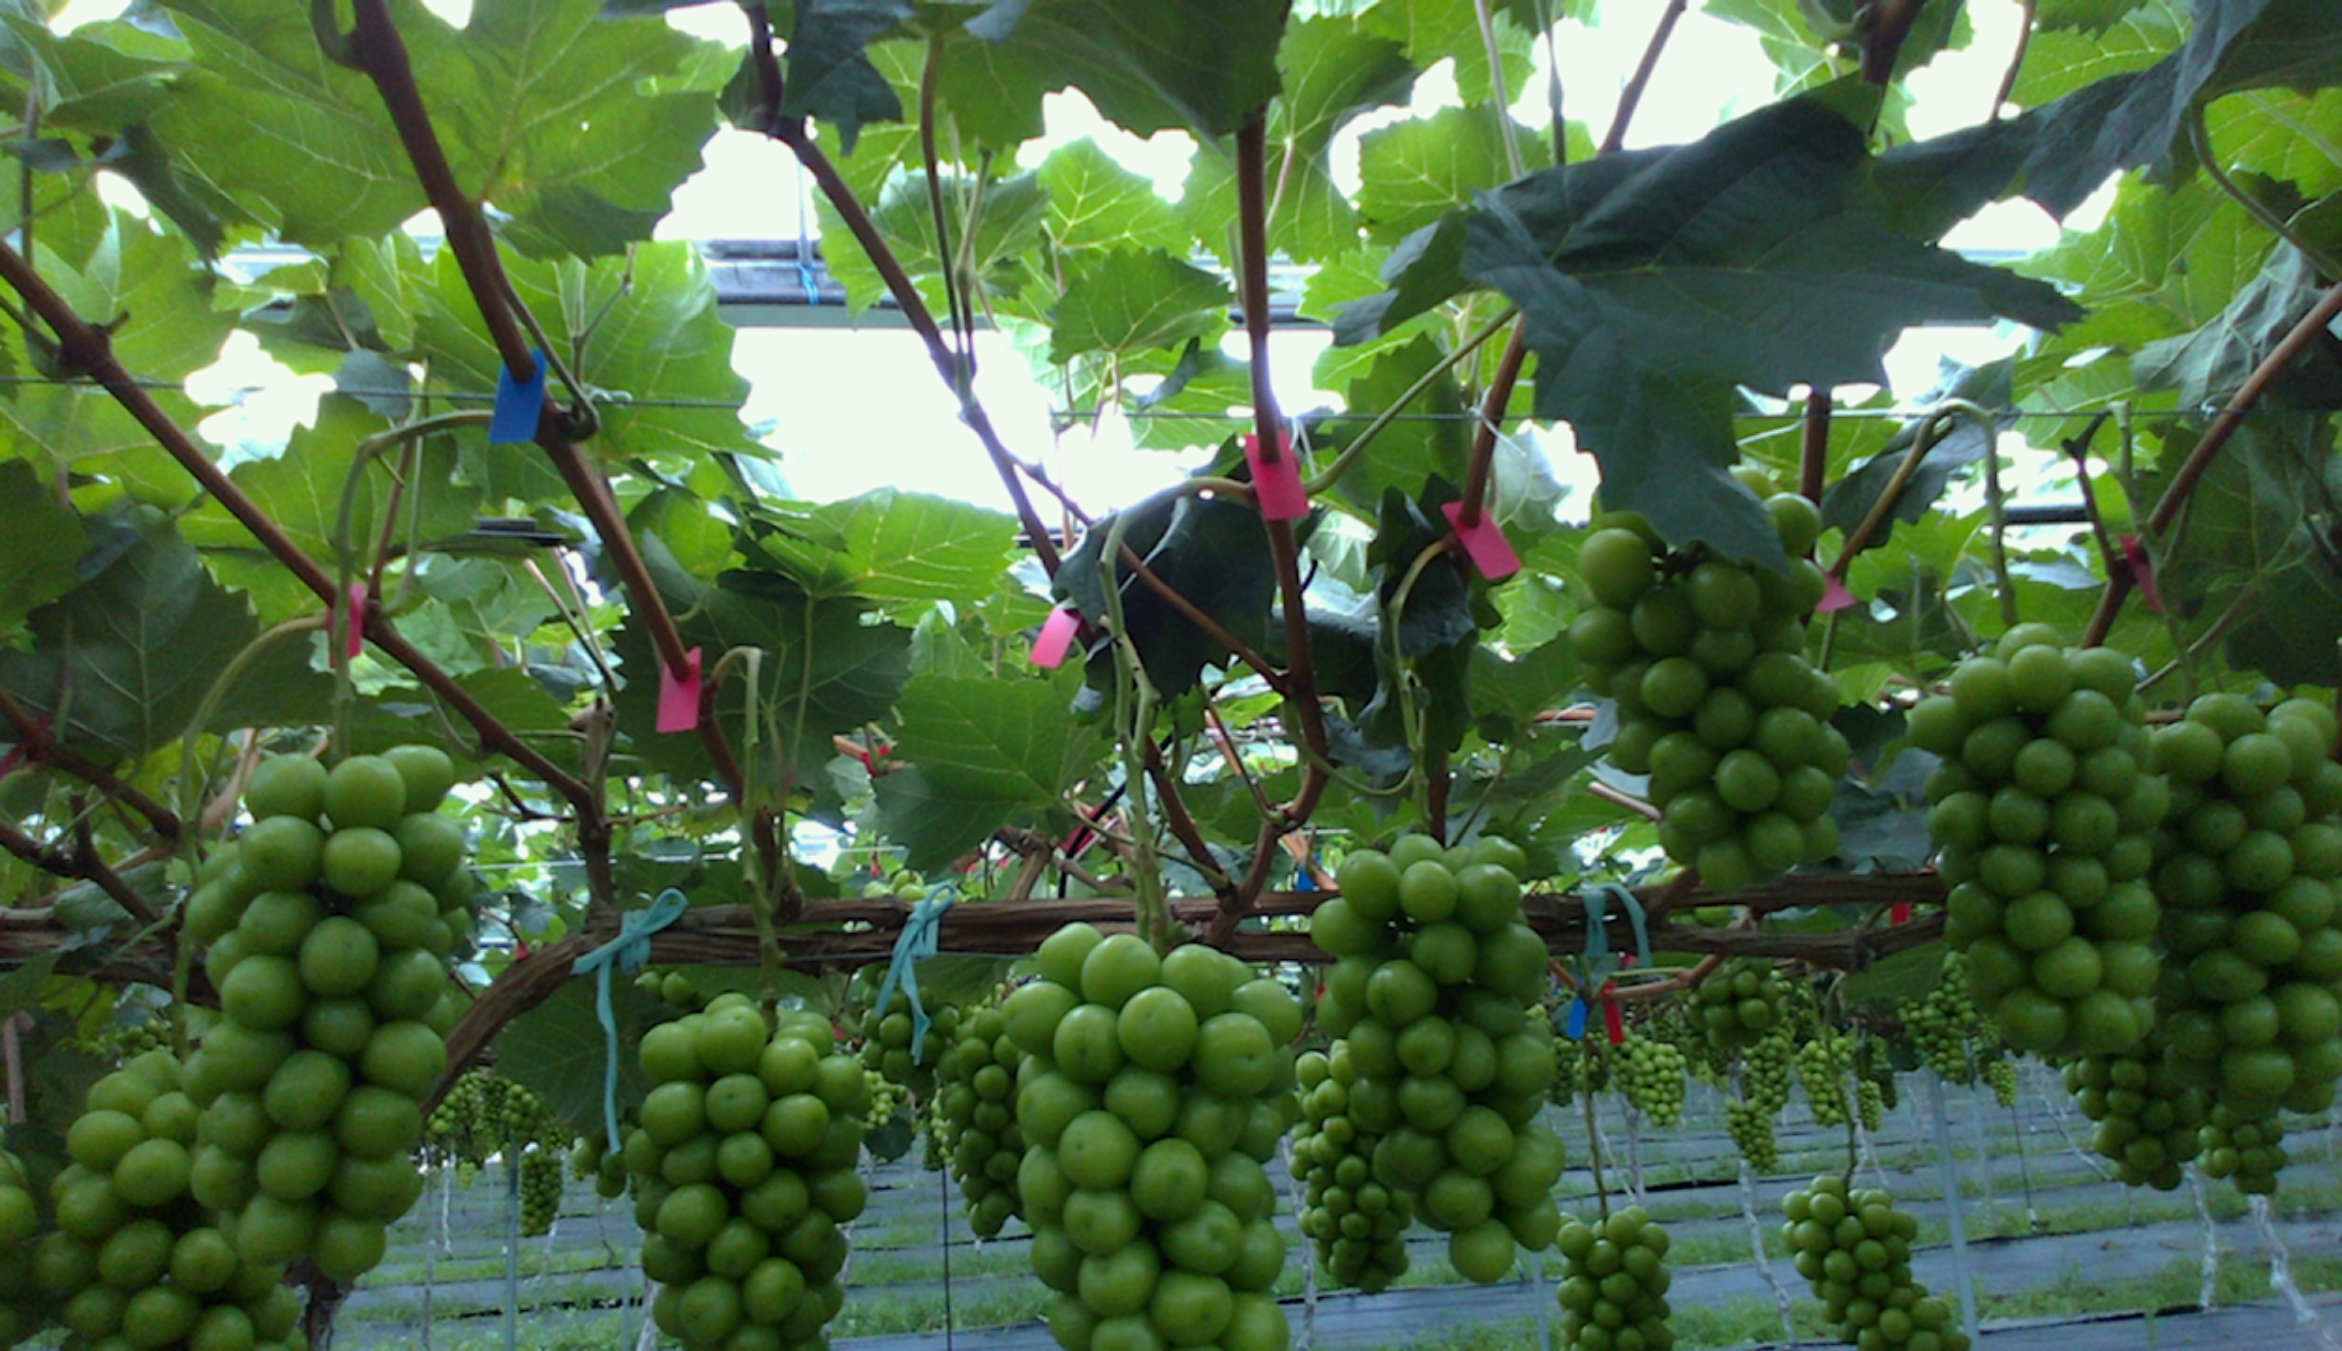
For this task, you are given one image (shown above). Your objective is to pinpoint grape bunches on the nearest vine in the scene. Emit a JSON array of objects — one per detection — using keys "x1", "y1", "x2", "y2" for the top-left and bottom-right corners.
[
  {"x1": 2145, "y1": 694, "x2": 2340, "y2": 1120},
  {"x1": 1903, "y1": 621, "x2": 2173, "y2": 1058},
  {"x1": 1569, "y1": 490, "x2": 1850, "y2": 897},
  {"x1": 625, "y1": 993, "x2": 874, "y2": 1349},
  {"x1": 1310, "y1": 831, "x2": 1569, "y2": 1287},
  {"x1": 180, "y1": 743, "x2": 473, "y2": 1282},
  {"x1": 998, "y1": 921, "x2": 1302, "y2": 1349},
  {"x1": 34, "y1": 1049, "x2": 306, "y2": 1349}
]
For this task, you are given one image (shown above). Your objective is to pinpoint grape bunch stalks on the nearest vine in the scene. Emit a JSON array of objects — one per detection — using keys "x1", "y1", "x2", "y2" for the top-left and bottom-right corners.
[
  {"x1": 1100, "y1": 475, "x2": 1255, "y2": 961},
  {"x1": 709, "y1": 645, "x2": 781, "y2": 1043},
  {"x1": 325, "y1": 407, "x2": 495, "y2": 767},
  {"x1": 2111, "y1": 411, "x2": 2201, "y2": 707},
  {"x1": 1830, "y1": 396, "x2": 2019, "y2": 630},
  {"x1": 169, "y1": 614, "x2": 325, "y2": 1060},
  {"x1": 1385, "y1": 535, "x2": 1454, "y2": 835}
]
